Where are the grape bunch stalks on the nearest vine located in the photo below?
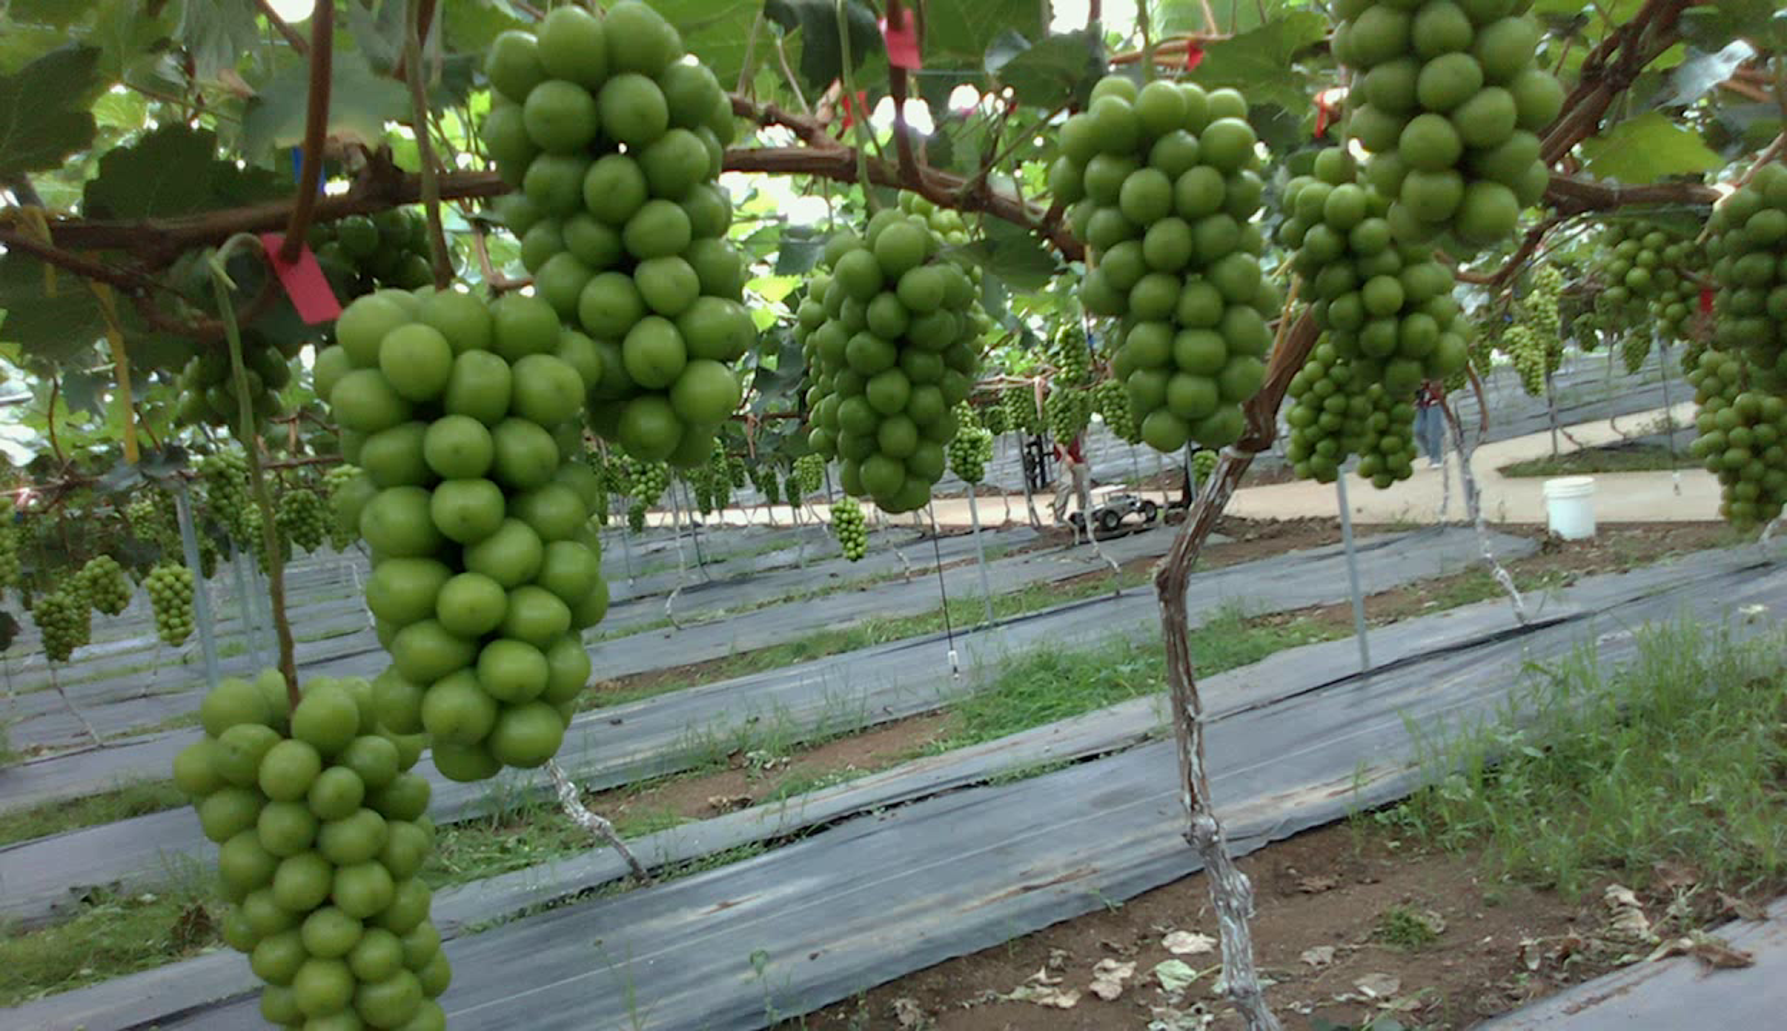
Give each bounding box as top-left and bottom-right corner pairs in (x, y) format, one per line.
(1137, 0), (1153, 83)
(402, 1), (450, 294)
(1337, 96), (1350, 152)
(210, 235), (299, 710)
(836, 1), (881, 219)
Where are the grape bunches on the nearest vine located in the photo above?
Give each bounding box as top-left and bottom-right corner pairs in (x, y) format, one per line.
(483, 1), (752, 467)
(1047, 74), (1282, 454)
(1277, 146), (1473, 395)
(1329, 1), (1564, 243)
(311, 286), (609, 782)
(818, 208), (978, 514)
(1707, 162), (1786, 388)
(173, 669), (452, 1030)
